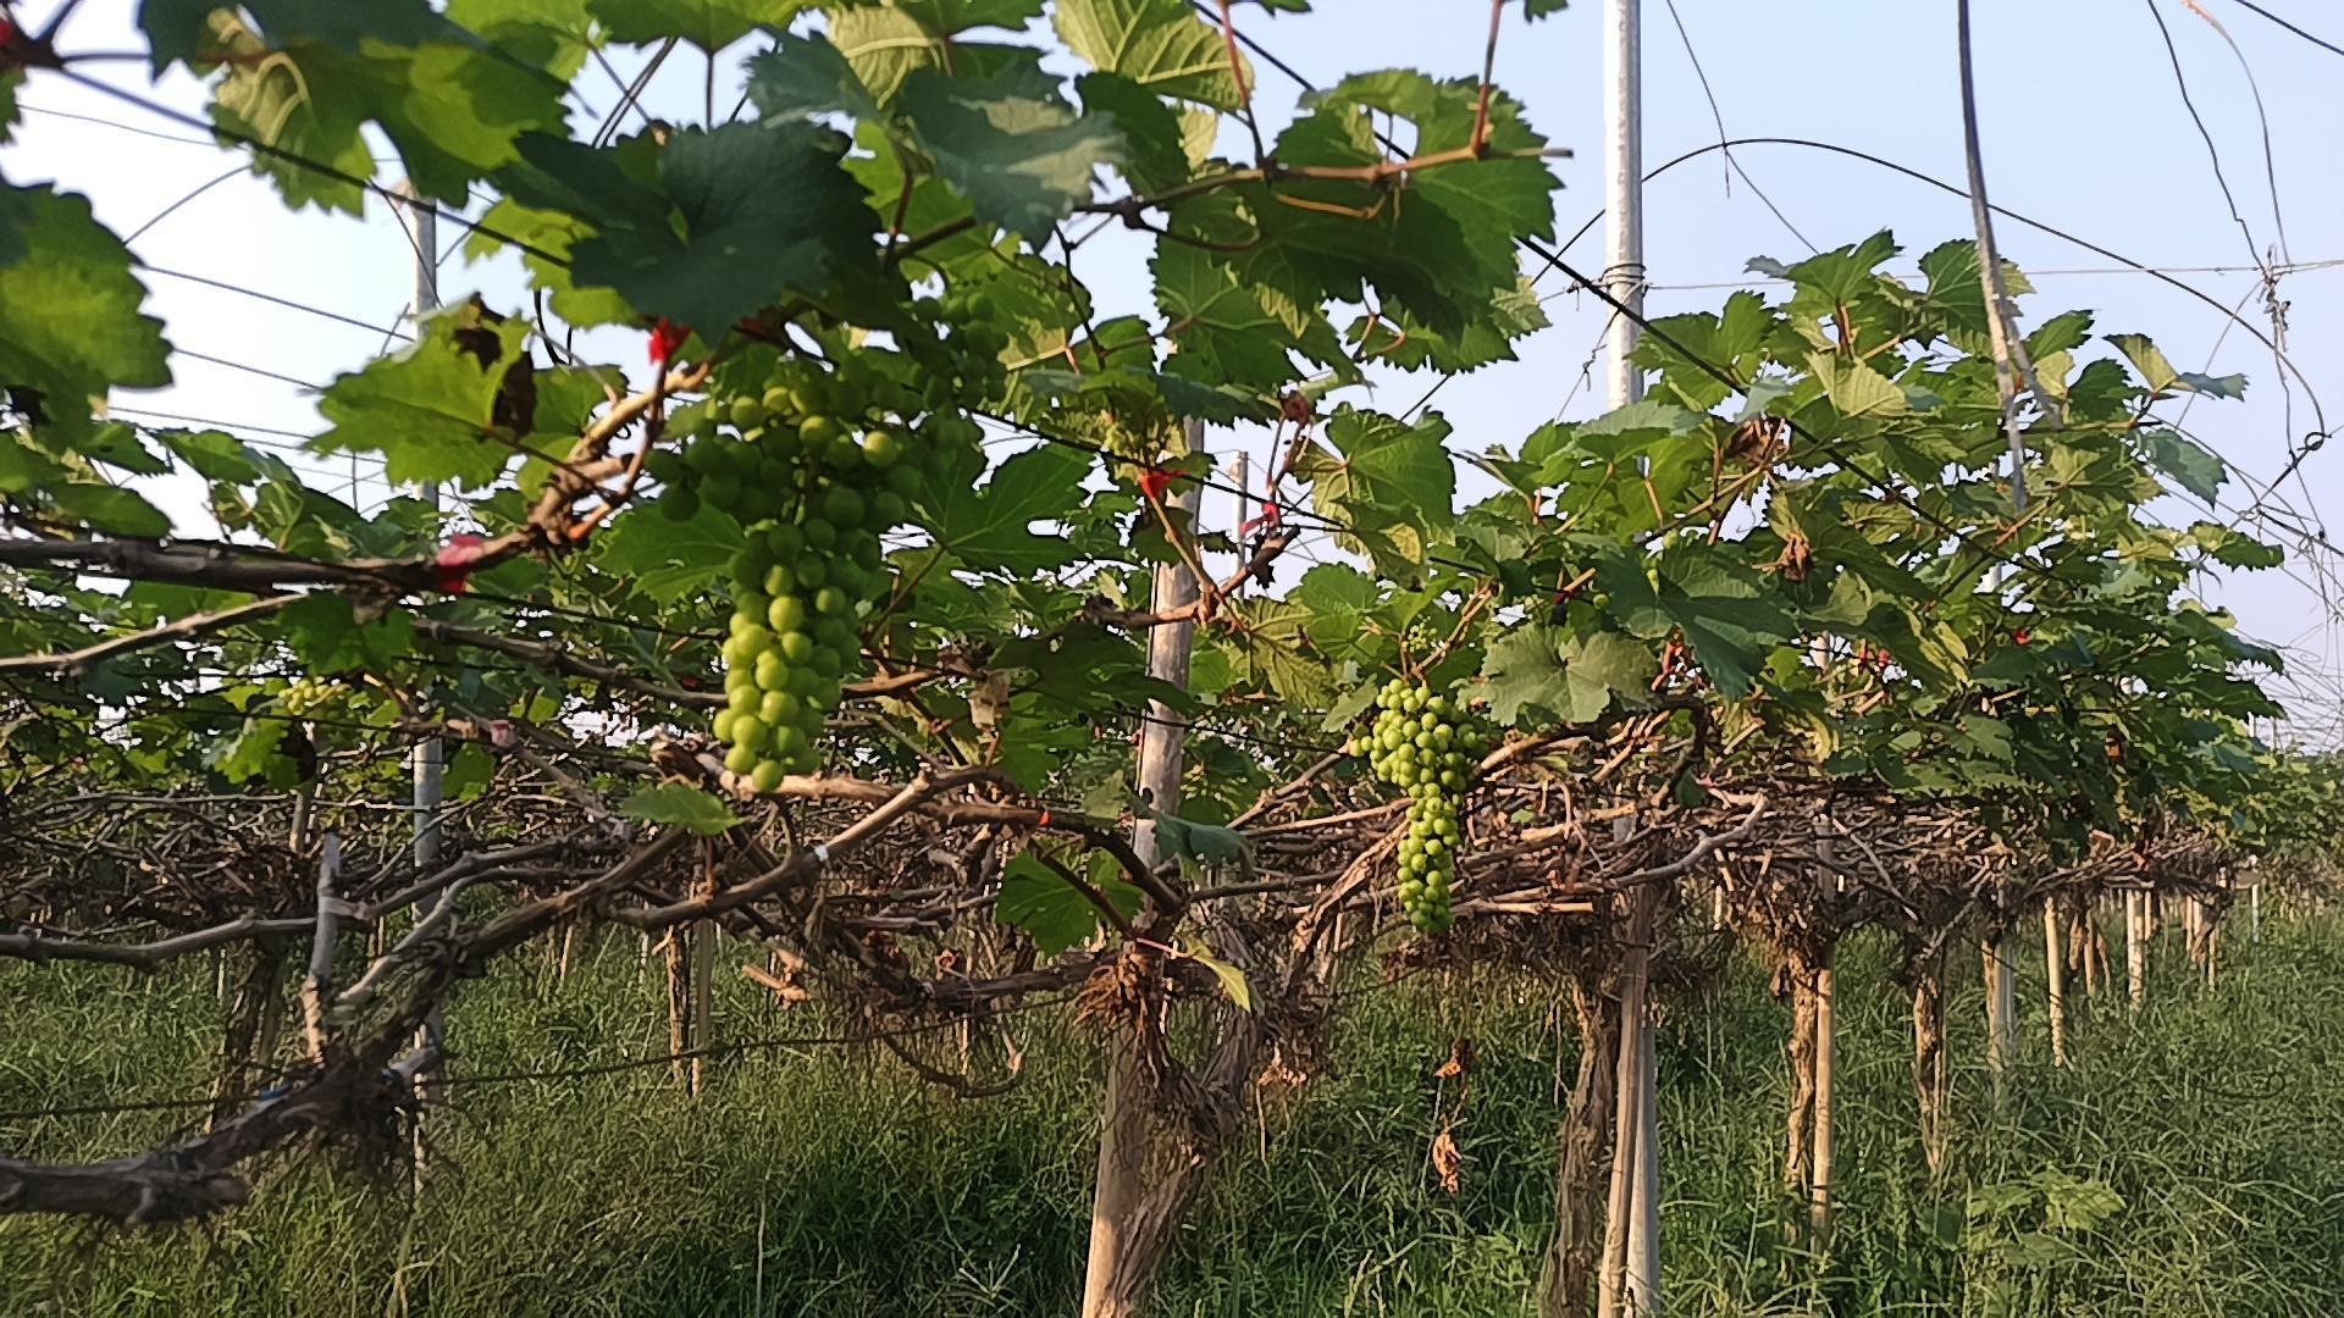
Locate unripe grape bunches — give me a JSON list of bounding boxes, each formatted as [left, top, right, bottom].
[[643, 355, 923, 792], [900, 293, 1010, 477], [1349, 679, 1493, 934]]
